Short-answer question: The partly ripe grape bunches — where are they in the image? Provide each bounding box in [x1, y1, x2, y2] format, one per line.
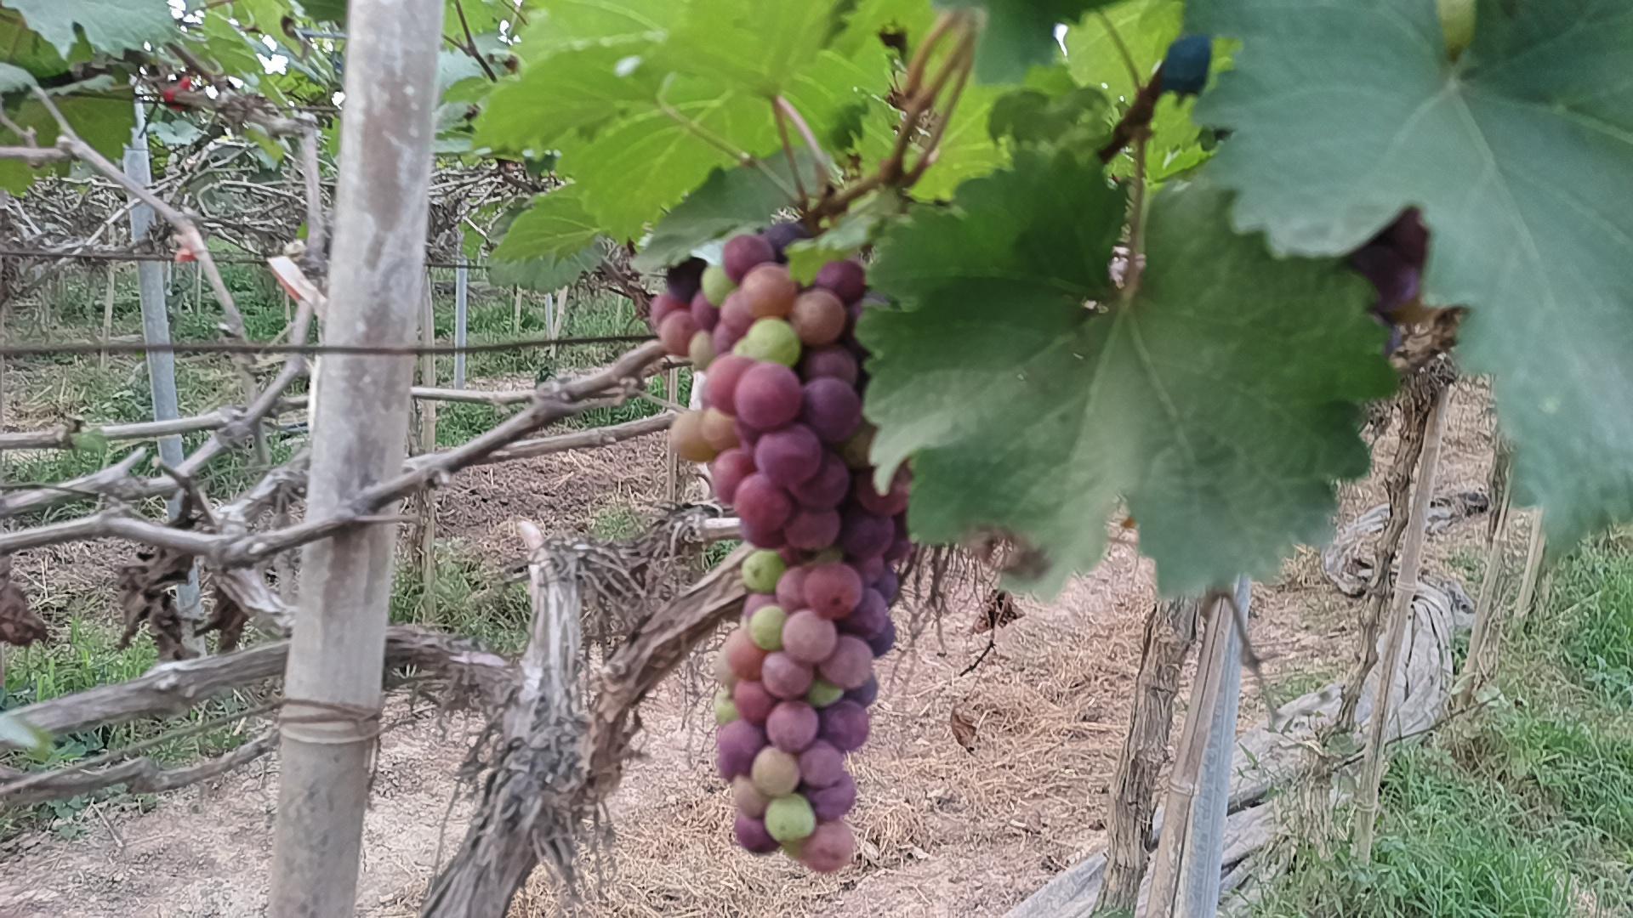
[653, 223, 912, 870]
[1346, 206, 1431, 360]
